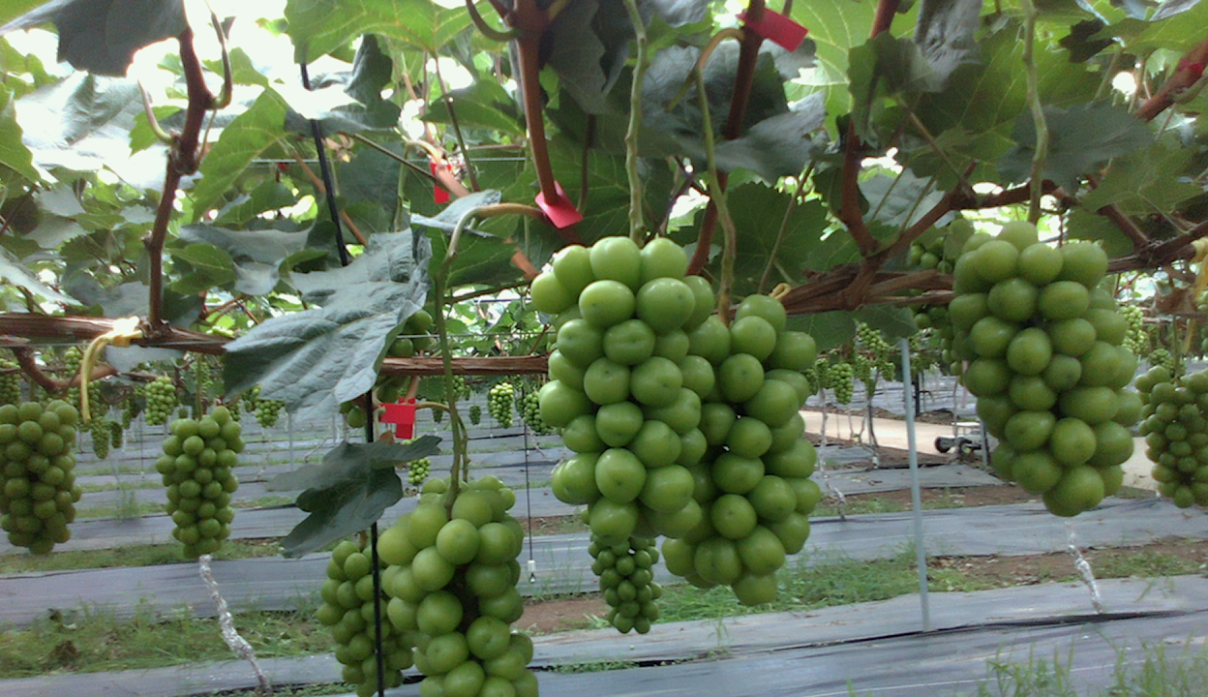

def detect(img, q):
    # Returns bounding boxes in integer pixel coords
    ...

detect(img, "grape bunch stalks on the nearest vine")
[435,203,538,518]
[666,25,738,326]
[623,1,646,247]
[1021,0,1048,226]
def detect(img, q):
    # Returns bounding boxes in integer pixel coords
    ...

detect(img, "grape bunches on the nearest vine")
[950,222,1144,516]
[376,478,540,696]
[661,296,821,606]
[529,236,716,546]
